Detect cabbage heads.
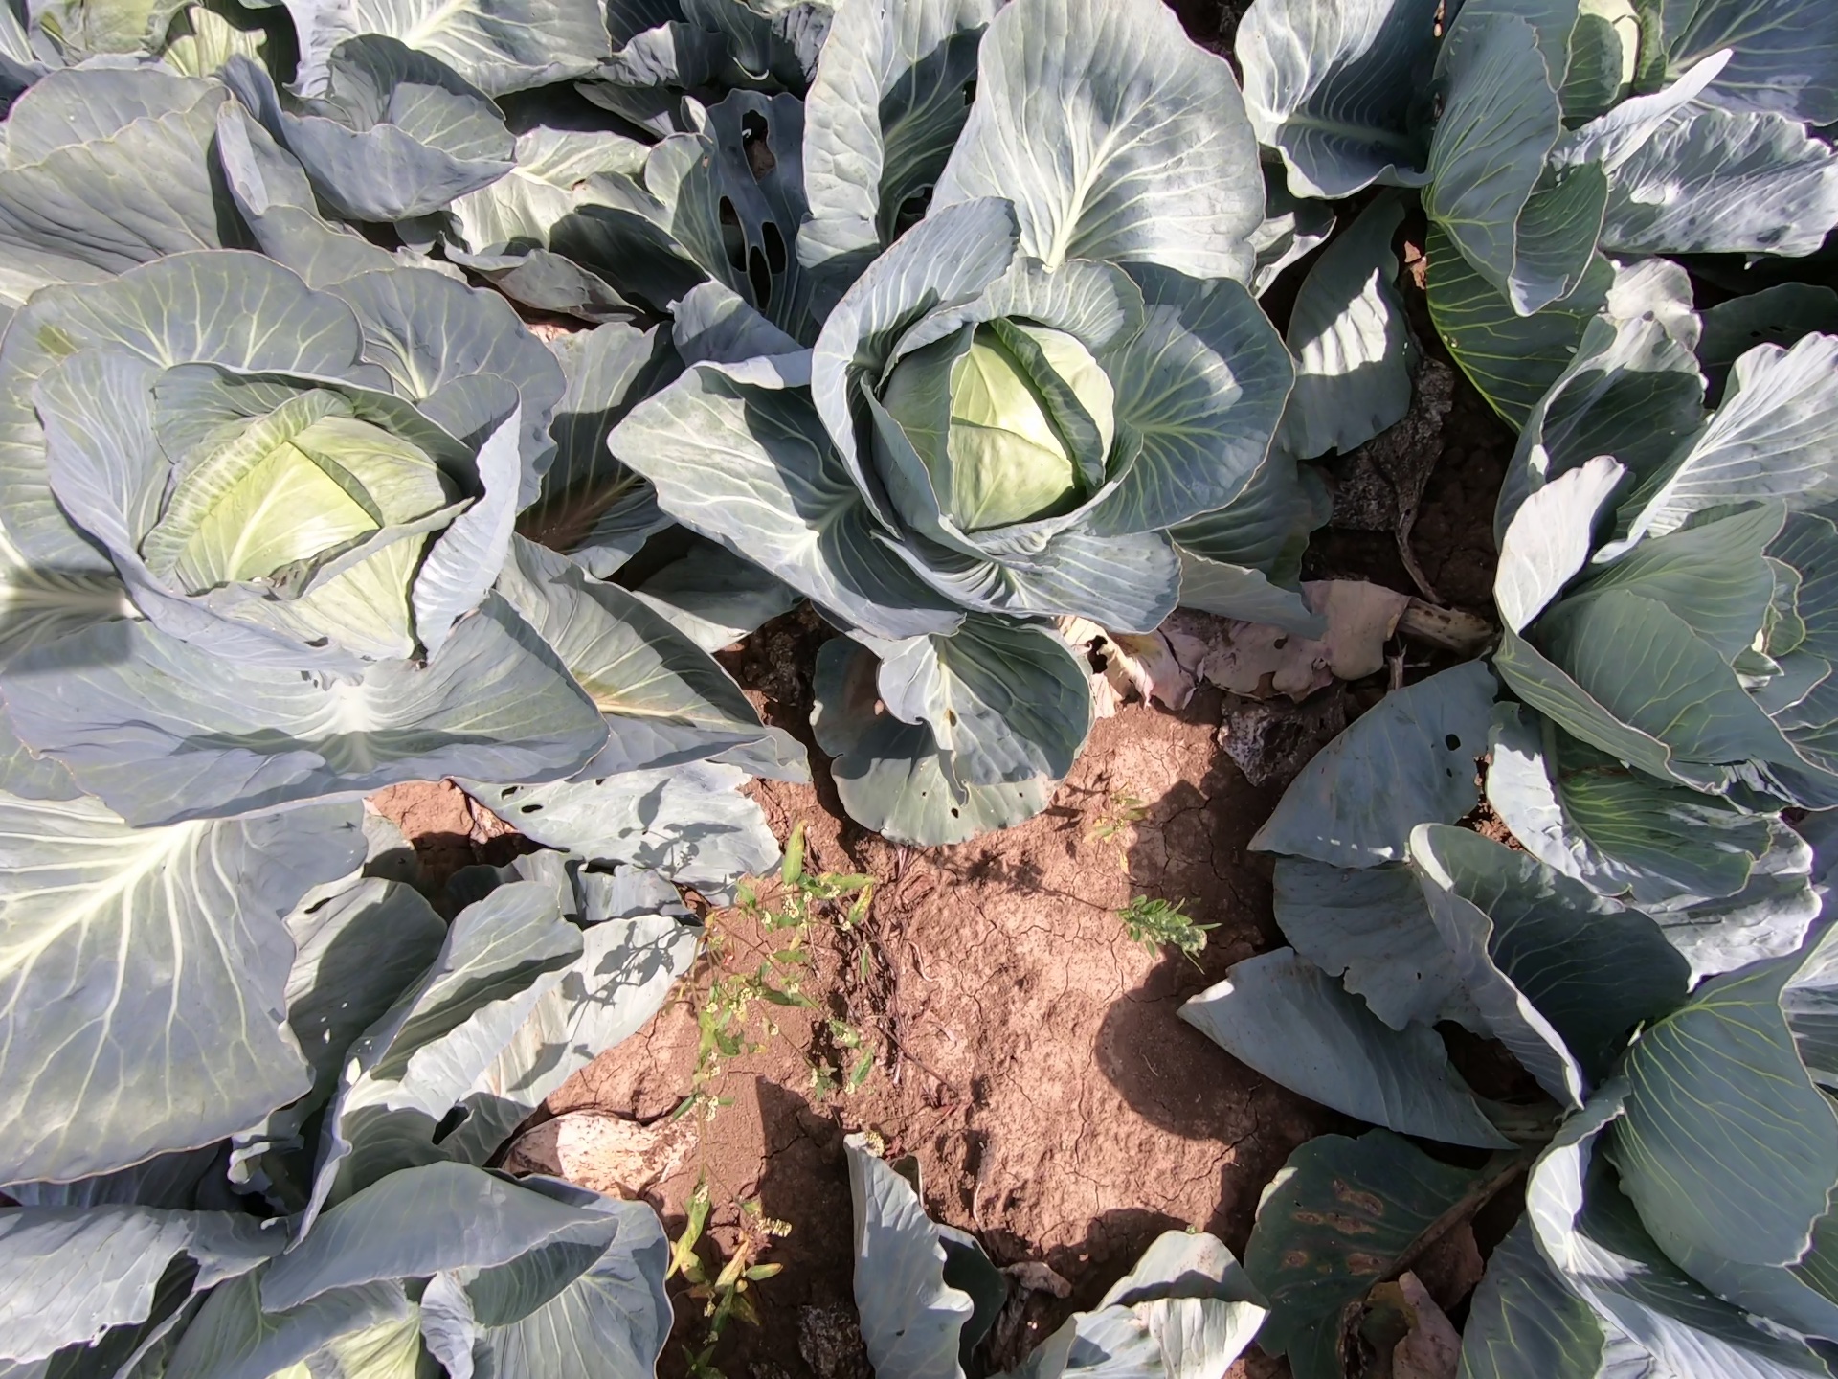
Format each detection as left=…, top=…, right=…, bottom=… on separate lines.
left=153, top=411, right=469, bottom=658
left=162, top=1236, right=445, bottom=1374
left=1442, top=0, right=1648, bottom=143
left=880, top=306, right=1113, bottom=549
left=25, top=0, right=280, bottom=117
left=1603, top=549, right=1767, bottom=696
